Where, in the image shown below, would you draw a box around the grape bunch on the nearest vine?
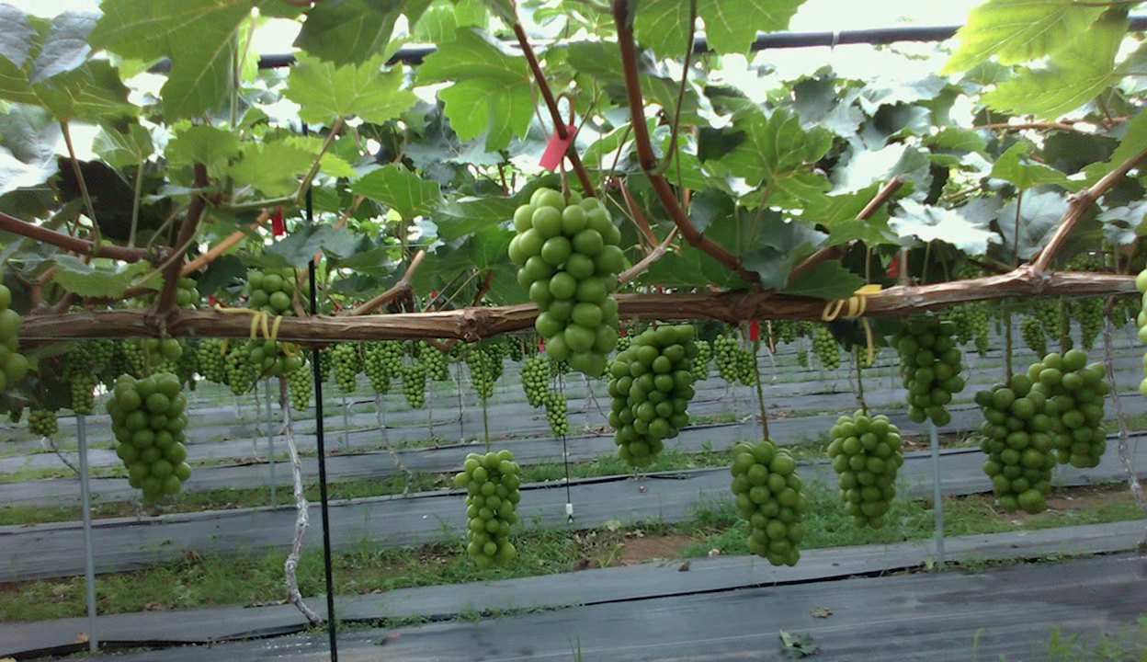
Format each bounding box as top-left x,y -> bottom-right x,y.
507,188 -> 623,379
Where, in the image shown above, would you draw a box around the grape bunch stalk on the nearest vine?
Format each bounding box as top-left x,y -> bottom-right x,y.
561,160 -> 572,205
